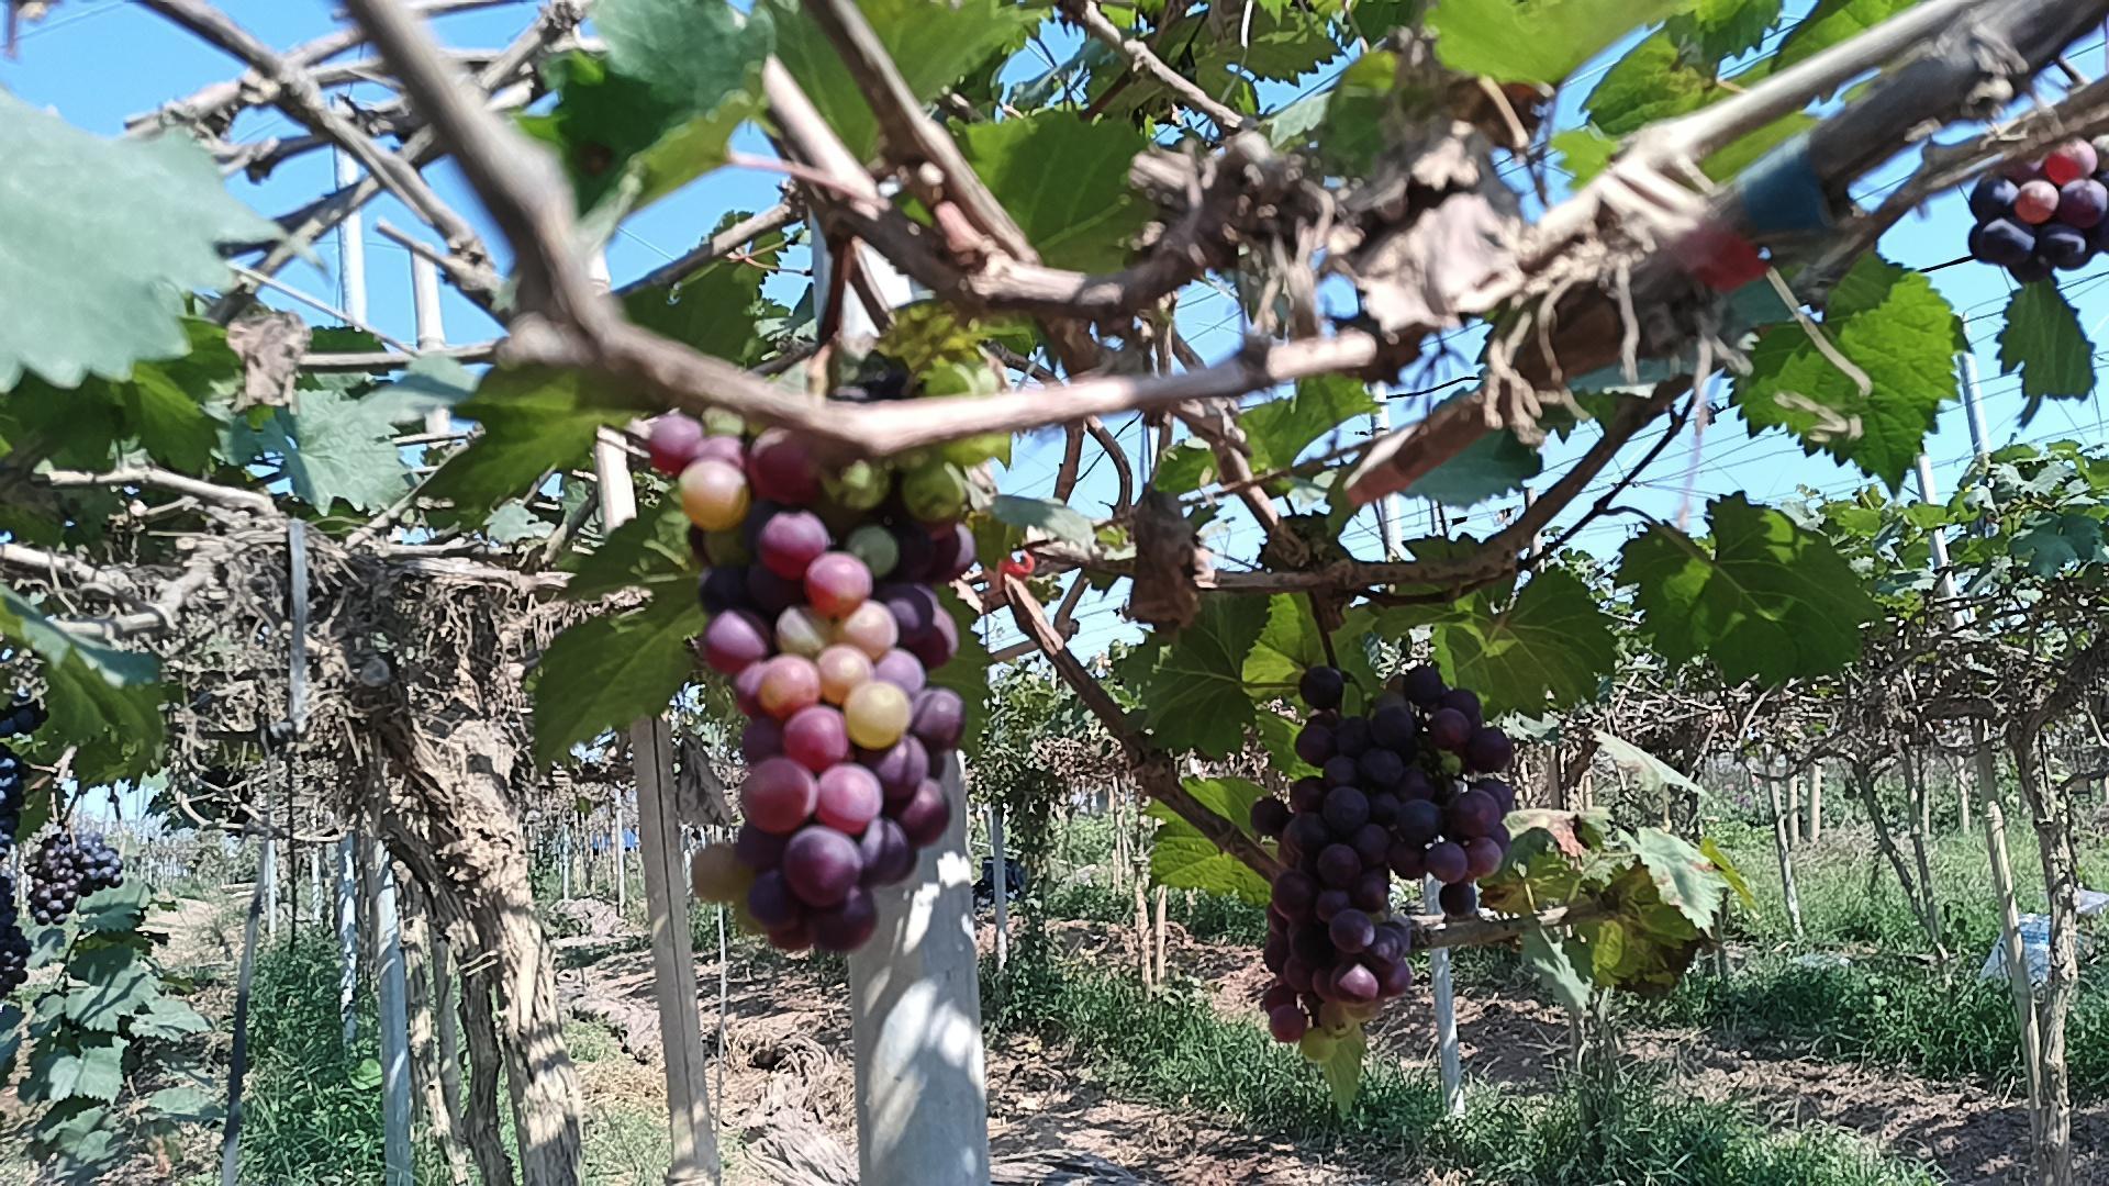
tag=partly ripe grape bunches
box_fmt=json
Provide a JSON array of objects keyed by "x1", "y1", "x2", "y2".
[
  {"x1": 647, "y1": 412, "x2": 974, "y2": 951},
  {"x1": 1251, "y1": 665, "x2": 1514, "y2": 1061}
]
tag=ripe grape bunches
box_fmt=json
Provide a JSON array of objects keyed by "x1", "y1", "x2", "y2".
[
  {"x1": 0, "y1": 704, "x2": 46, "y2": 862},
  {"x1": 23, "y1": 824, "x2": 123, "y2": 924},
  {"x1": 1967, "y1": 138, "x2": 2108, "y2": 283},
  {"x1": 0, "y1": 869, "x2": 31, "y2": 998}
]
